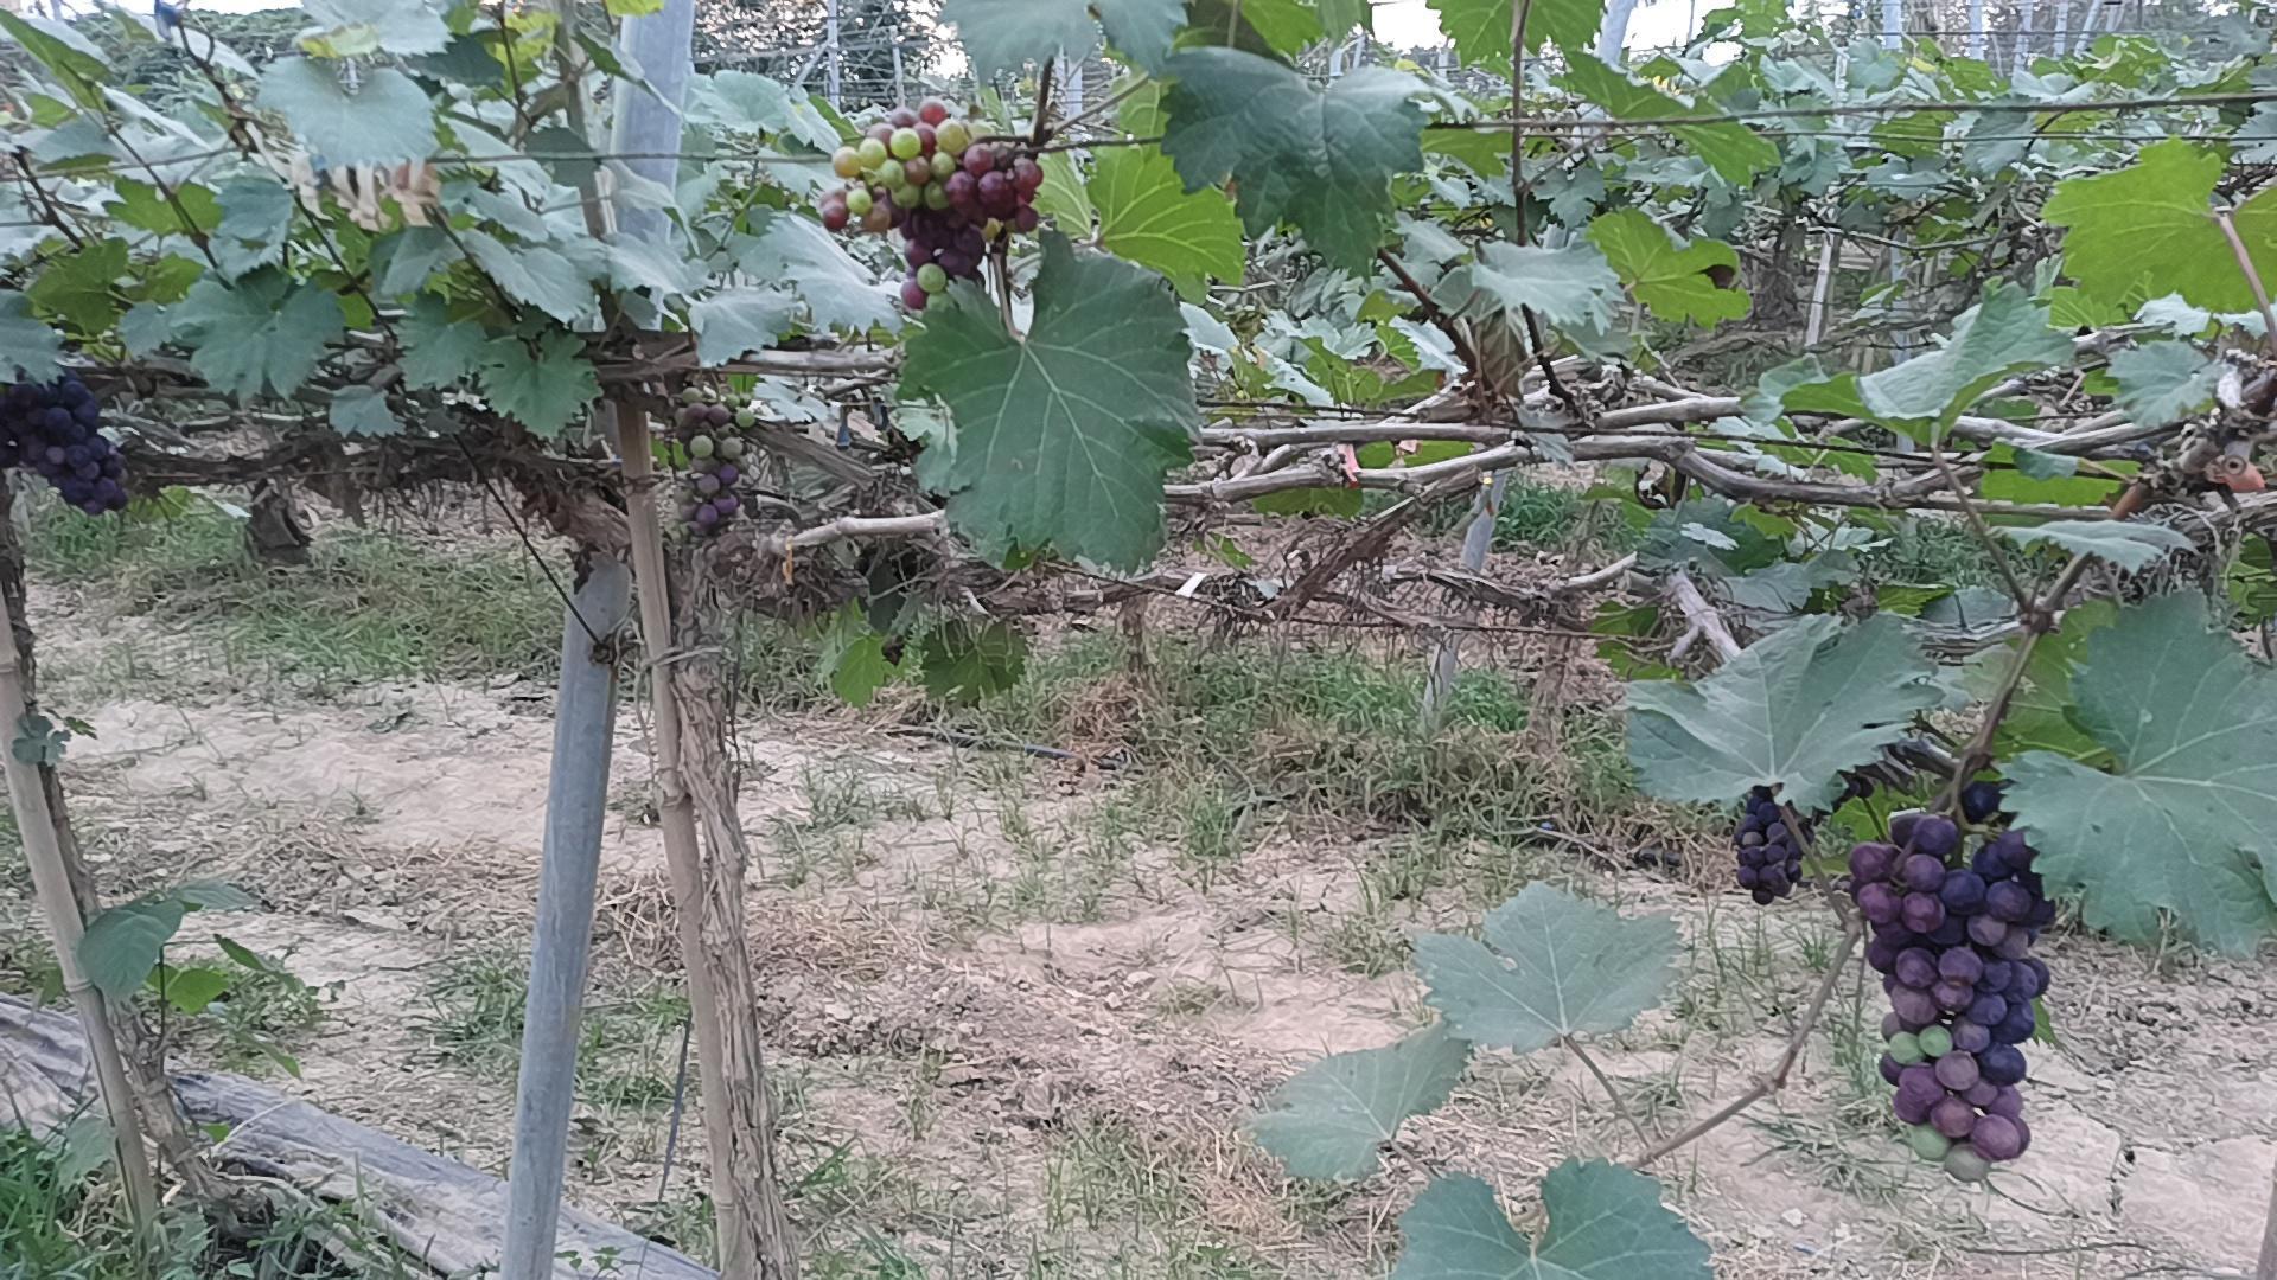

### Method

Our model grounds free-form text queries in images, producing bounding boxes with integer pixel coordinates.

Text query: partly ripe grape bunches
[1850,811,2054,1177]
[674,388,745,537]
[818,101,1042,311]
[1733,786,1812,904]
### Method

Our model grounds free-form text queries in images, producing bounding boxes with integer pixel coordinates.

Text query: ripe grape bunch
[0,373,127,513]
